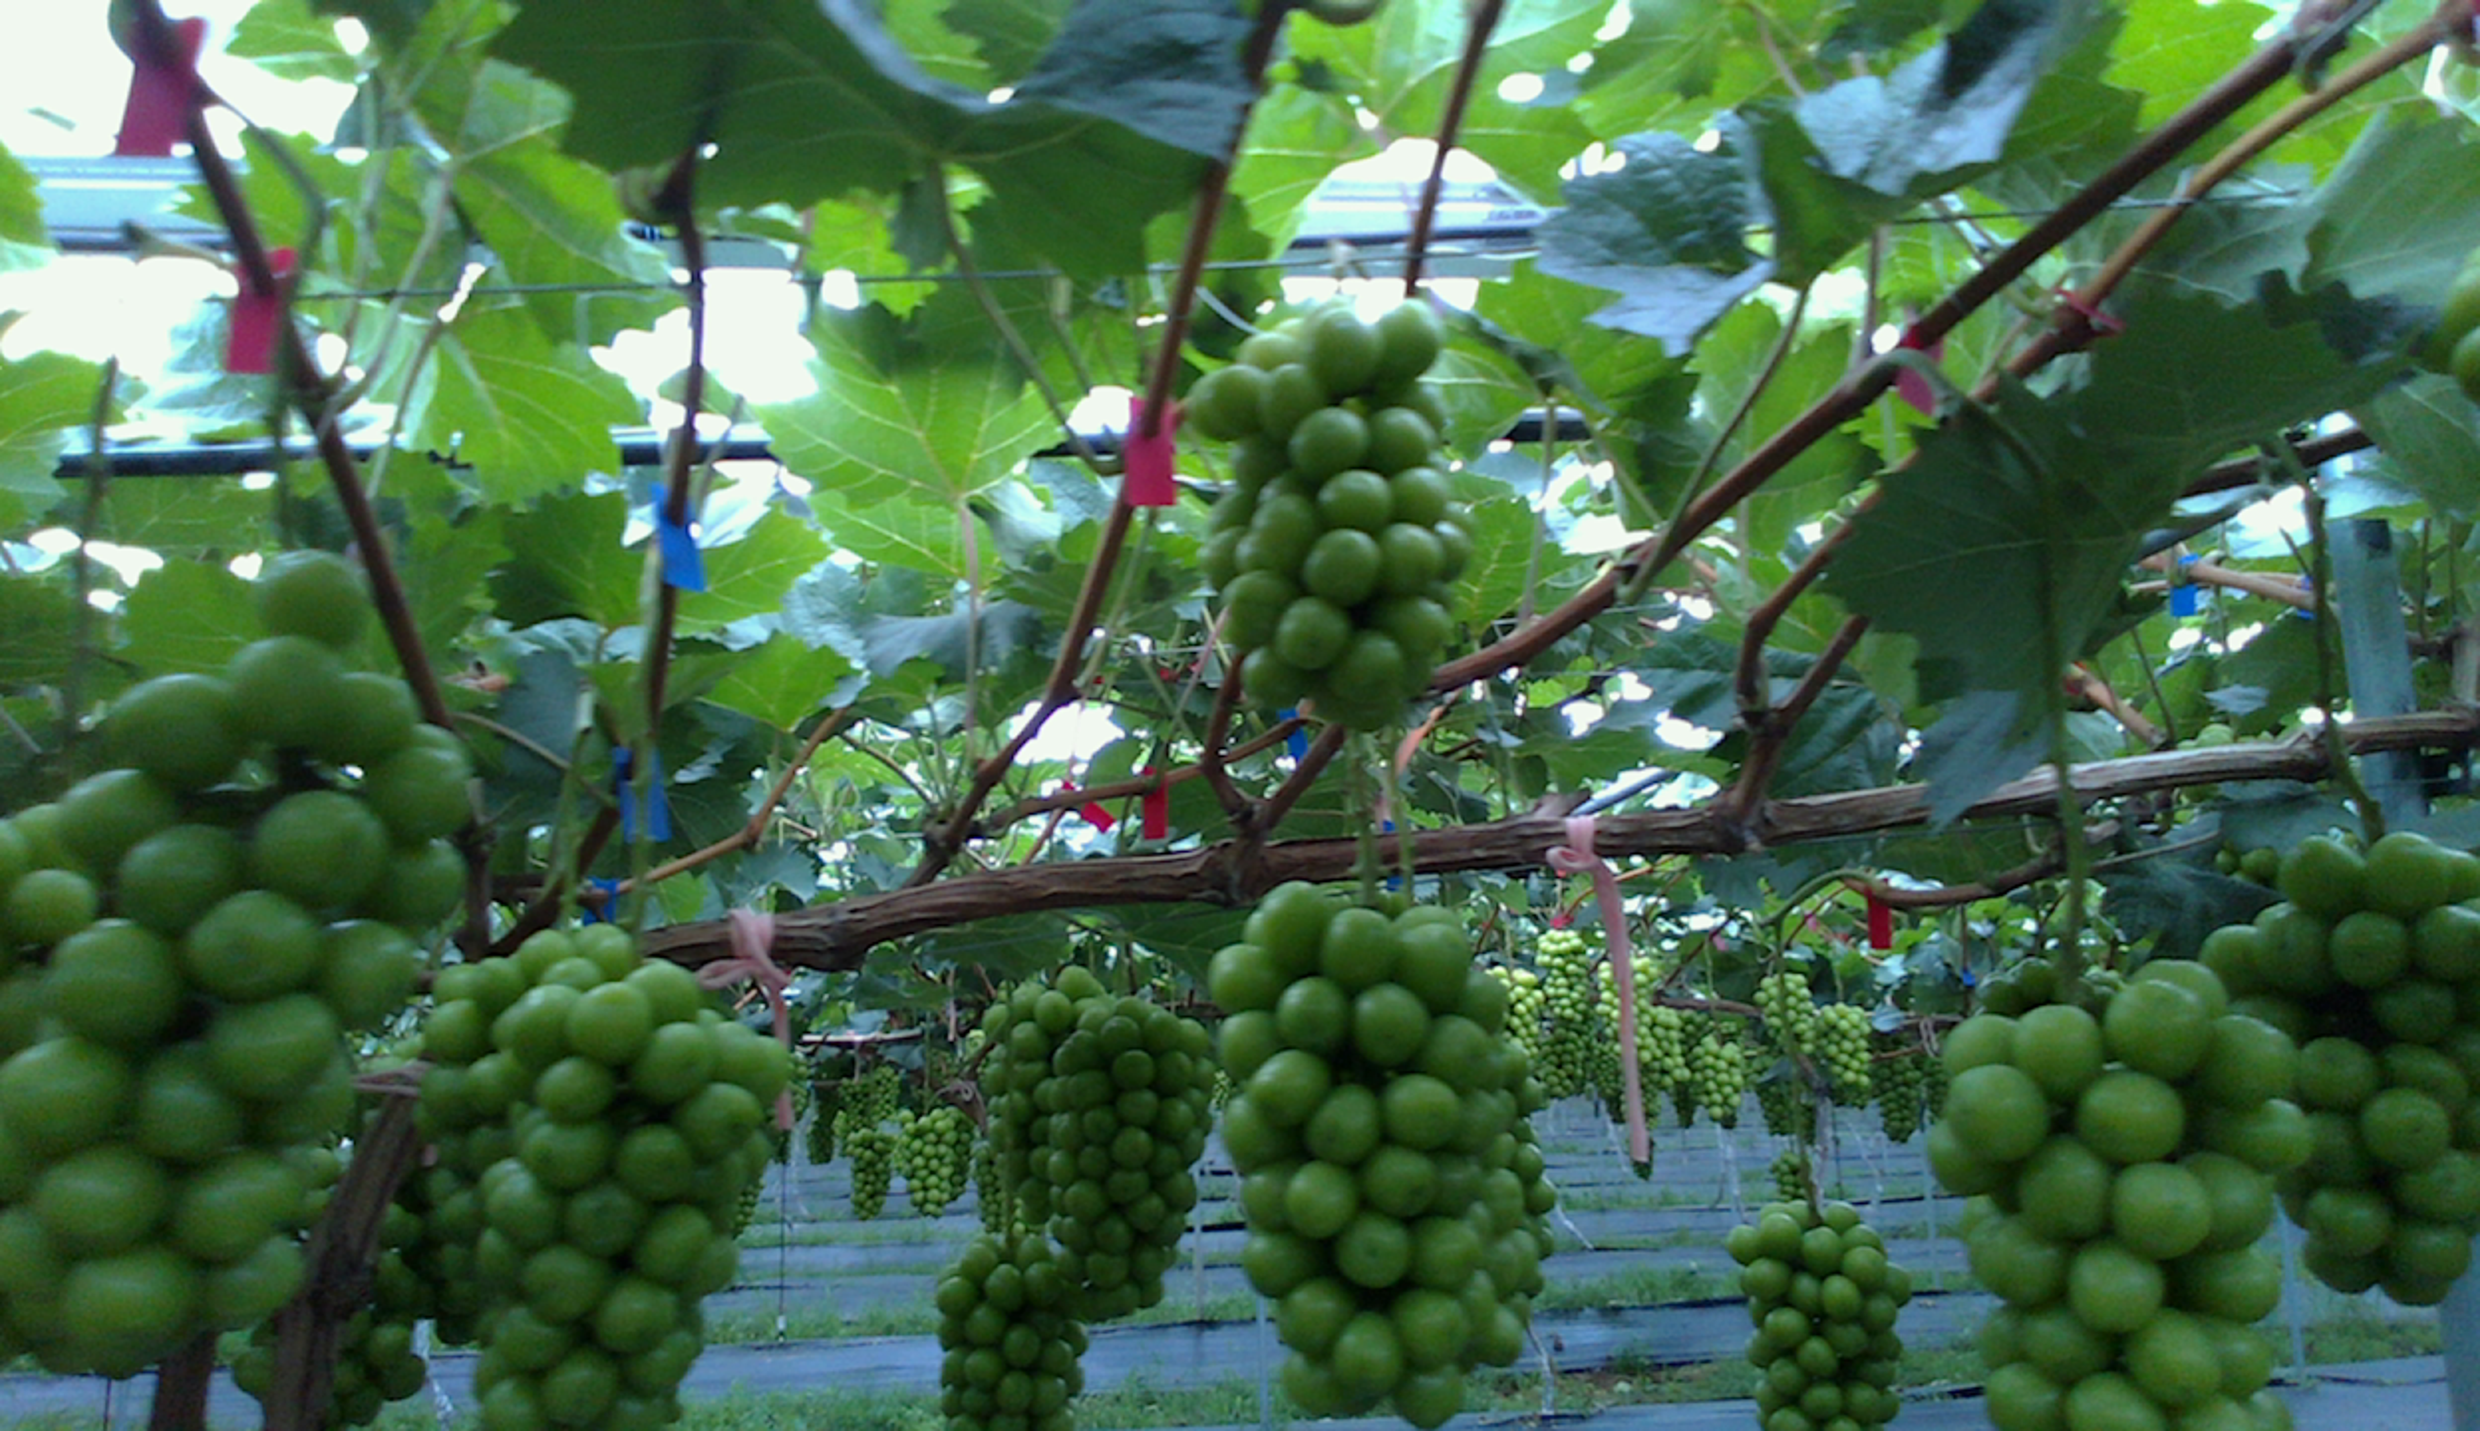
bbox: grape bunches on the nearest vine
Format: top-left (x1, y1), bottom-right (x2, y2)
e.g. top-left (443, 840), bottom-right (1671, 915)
top-left (1184, 300), bottom-right (1478, 733)
top-left (2196, 829), bottom-right (2476, 1310)
top-left (1208, 878), bottom-right (1558, 1429)
top-left (2, 547), bottom-right (471, 1383)
top-left (411, 920), bottom-right (789, 1429)
top-left (1926, 960), bottom-right (2315, 1429)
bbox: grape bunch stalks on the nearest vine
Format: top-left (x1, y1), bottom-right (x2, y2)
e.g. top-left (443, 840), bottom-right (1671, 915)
top-left (1349, 727), bottom-right (1379, 906)
top-left (2257, 431), bottom-right (2387, 847)
top-left (560, 723), bottom-right (598, 930)
top-left (2039, 682), bottom-right (2085, 1008)
top-left (268, 302), bottom-right (296, 549)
